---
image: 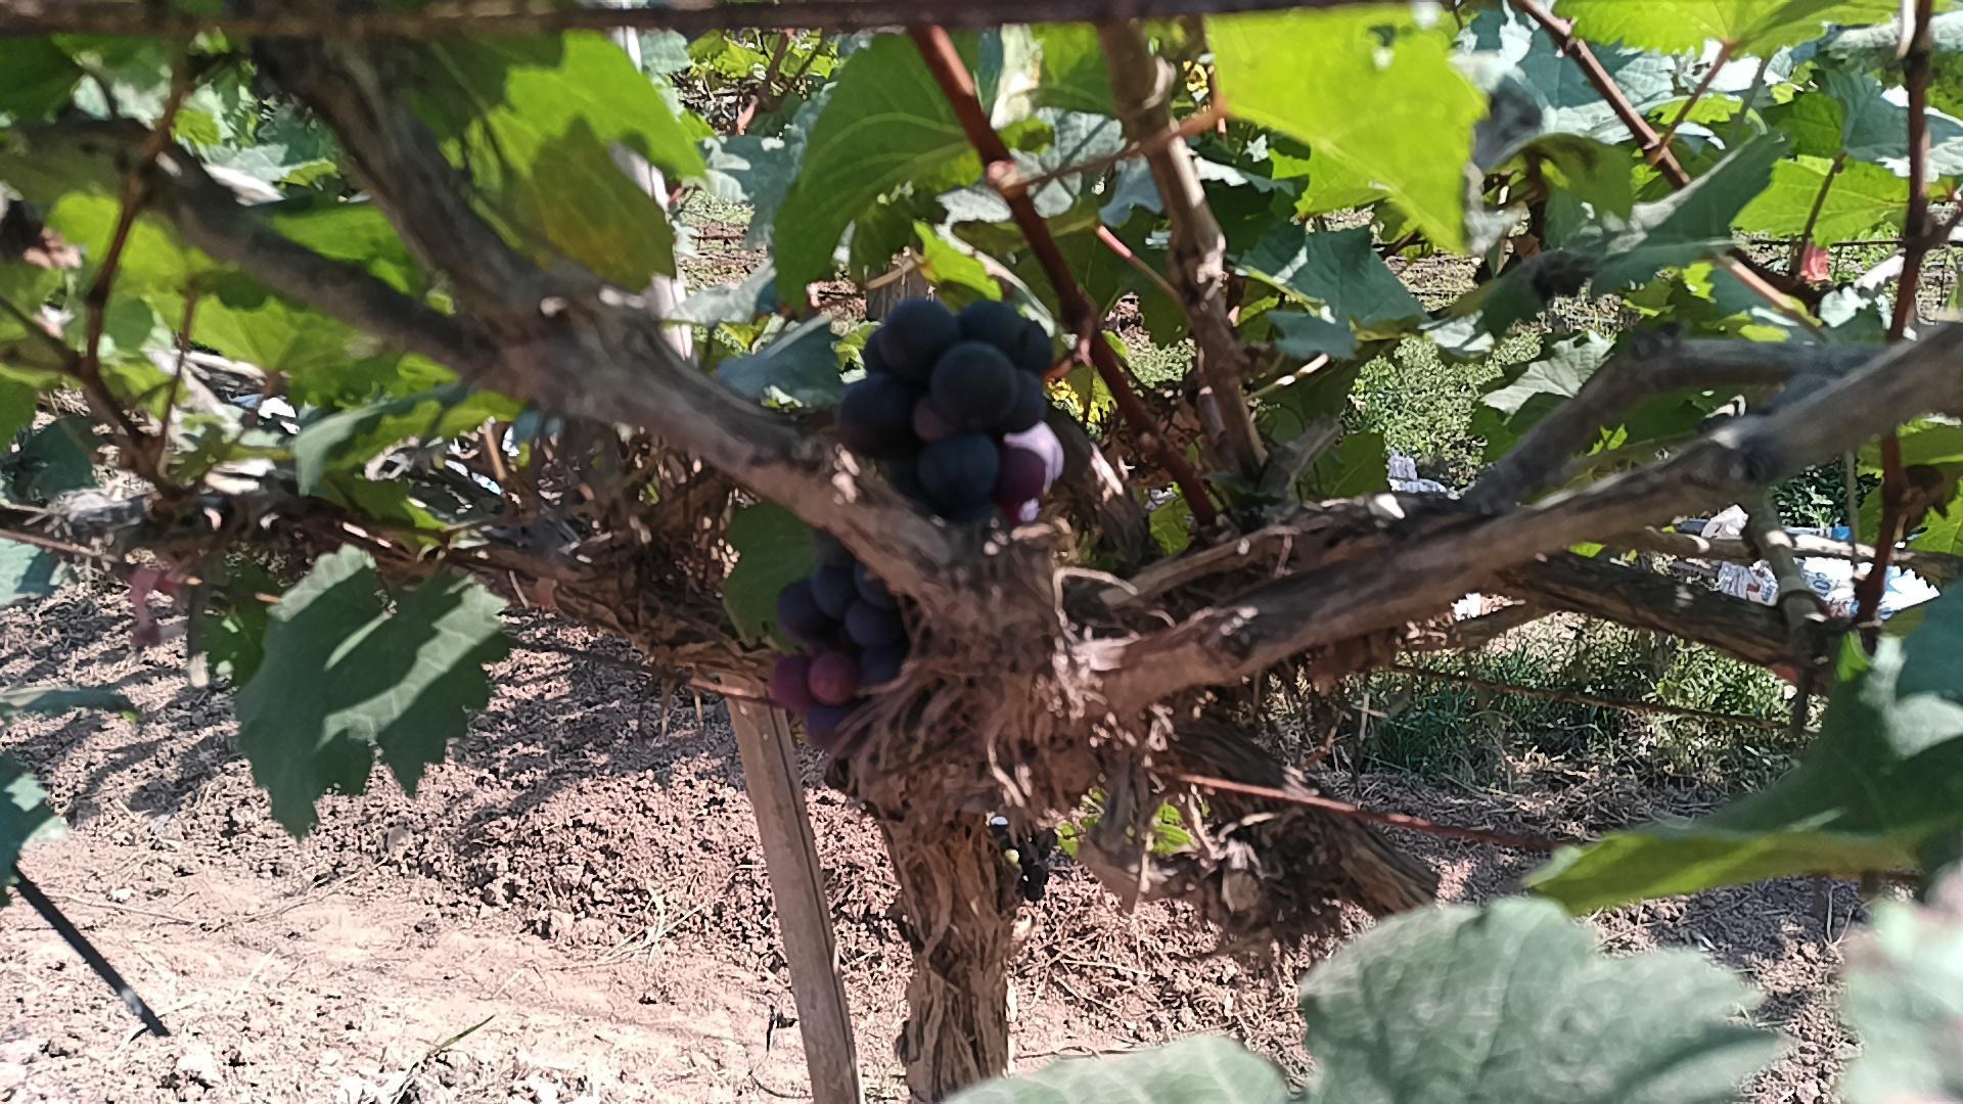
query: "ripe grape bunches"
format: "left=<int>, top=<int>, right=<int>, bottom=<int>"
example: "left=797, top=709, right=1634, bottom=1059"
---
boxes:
left=837, top=300, right=1063, bottom=524
left=772, top=528, right=906, bottom=743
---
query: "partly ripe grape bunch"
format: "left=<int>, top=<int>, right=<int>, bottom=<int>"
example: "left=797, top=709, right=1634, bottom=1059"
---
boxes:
left=988, top=815, right=1058, bottom=902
